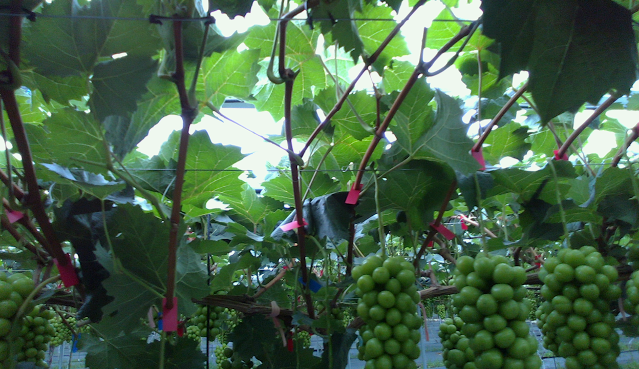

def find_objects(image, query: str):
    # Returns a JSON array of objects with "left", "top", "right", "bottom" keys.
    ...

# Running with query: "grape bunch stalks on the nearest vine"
[
  {"left": 546, "top": 157, "right": 571, "bottom": 247},
  {"left": 473, "top": 173, "right": 488, "bottom": 256},
  {"left": 373, "top": 171, "right": 386, "bottom": 259}
]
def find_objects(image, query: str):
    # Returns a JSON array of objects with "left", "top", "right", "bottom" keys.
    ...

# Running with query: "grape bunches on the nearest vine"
[
  {"left": 352, "top": 255, "right": 422, "bottom": 367},
  {"left": 538, "top": 244, "right": 622, "bottom": 368},
  {"left": 454, "top": 251, "right": 541, "bottom": 368}
]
